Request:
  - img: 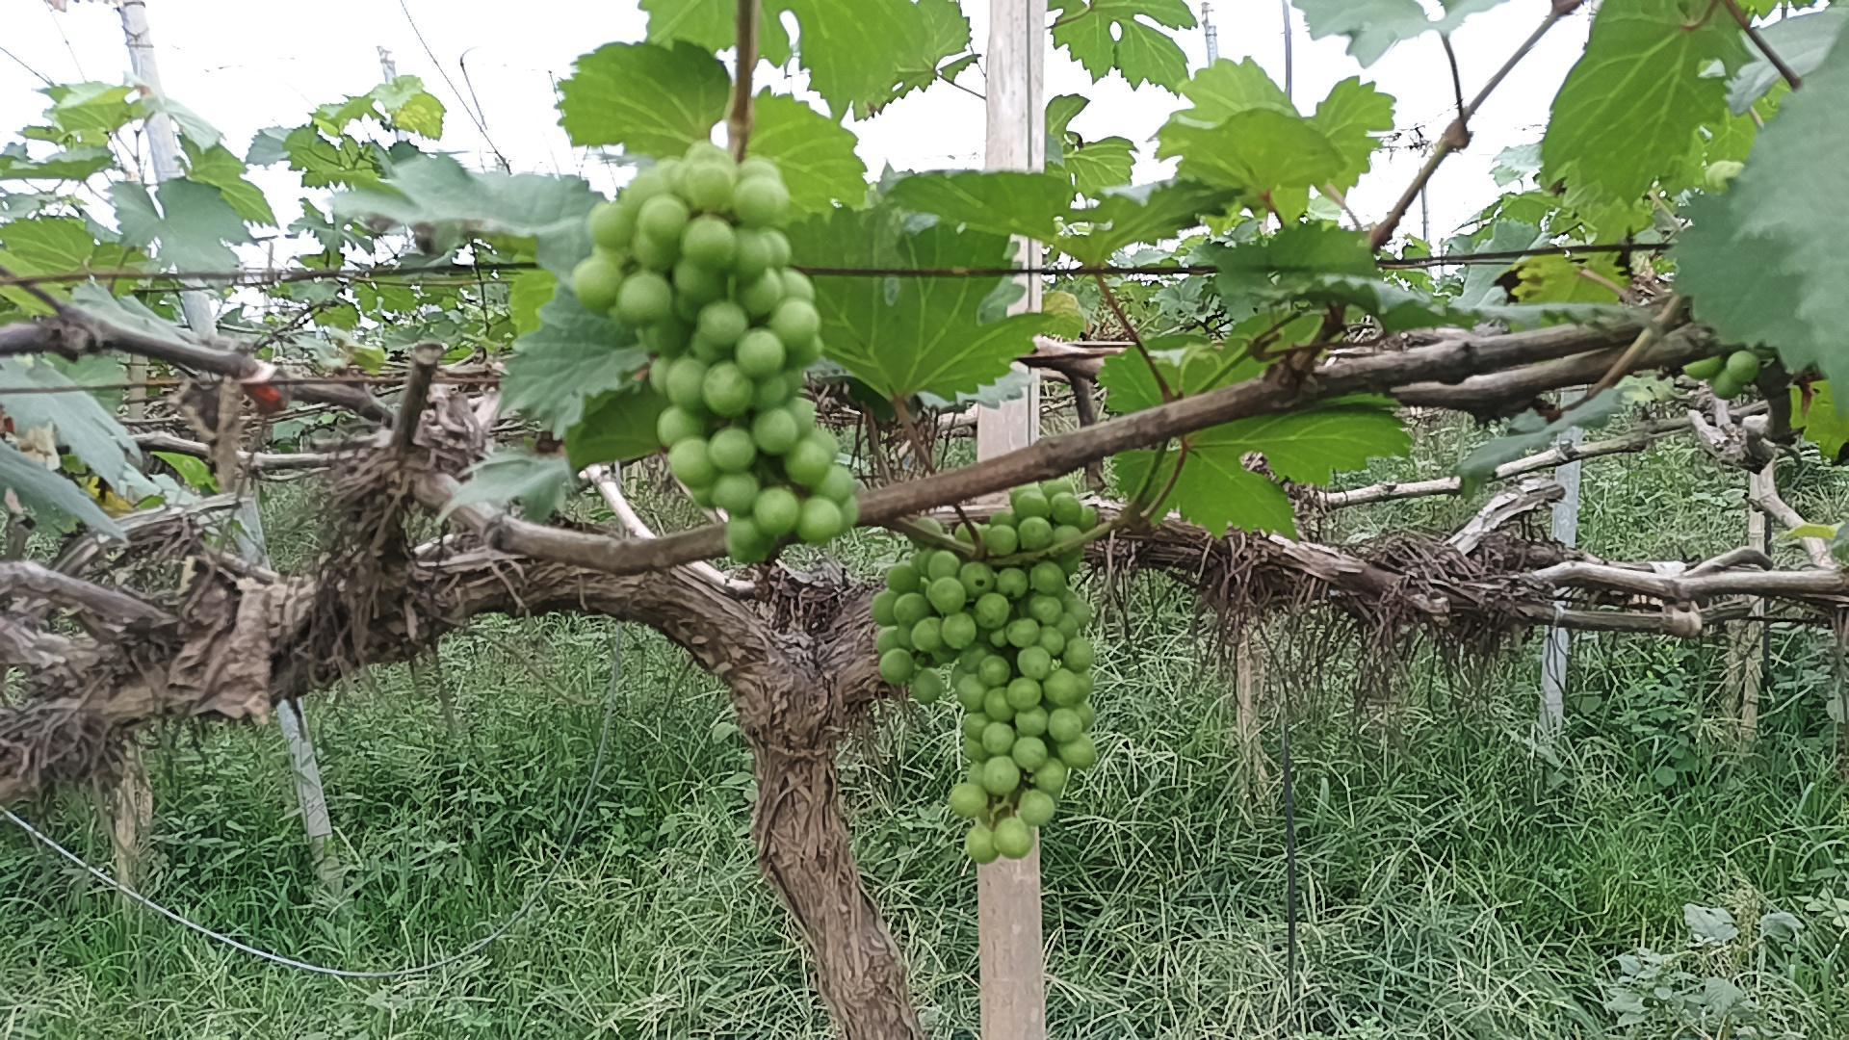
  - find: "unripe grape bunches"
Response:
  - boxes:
[1686,160,1741,202]
[1681,347,1768,403]
[872,484,1095,863]
[574,144,857,560]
